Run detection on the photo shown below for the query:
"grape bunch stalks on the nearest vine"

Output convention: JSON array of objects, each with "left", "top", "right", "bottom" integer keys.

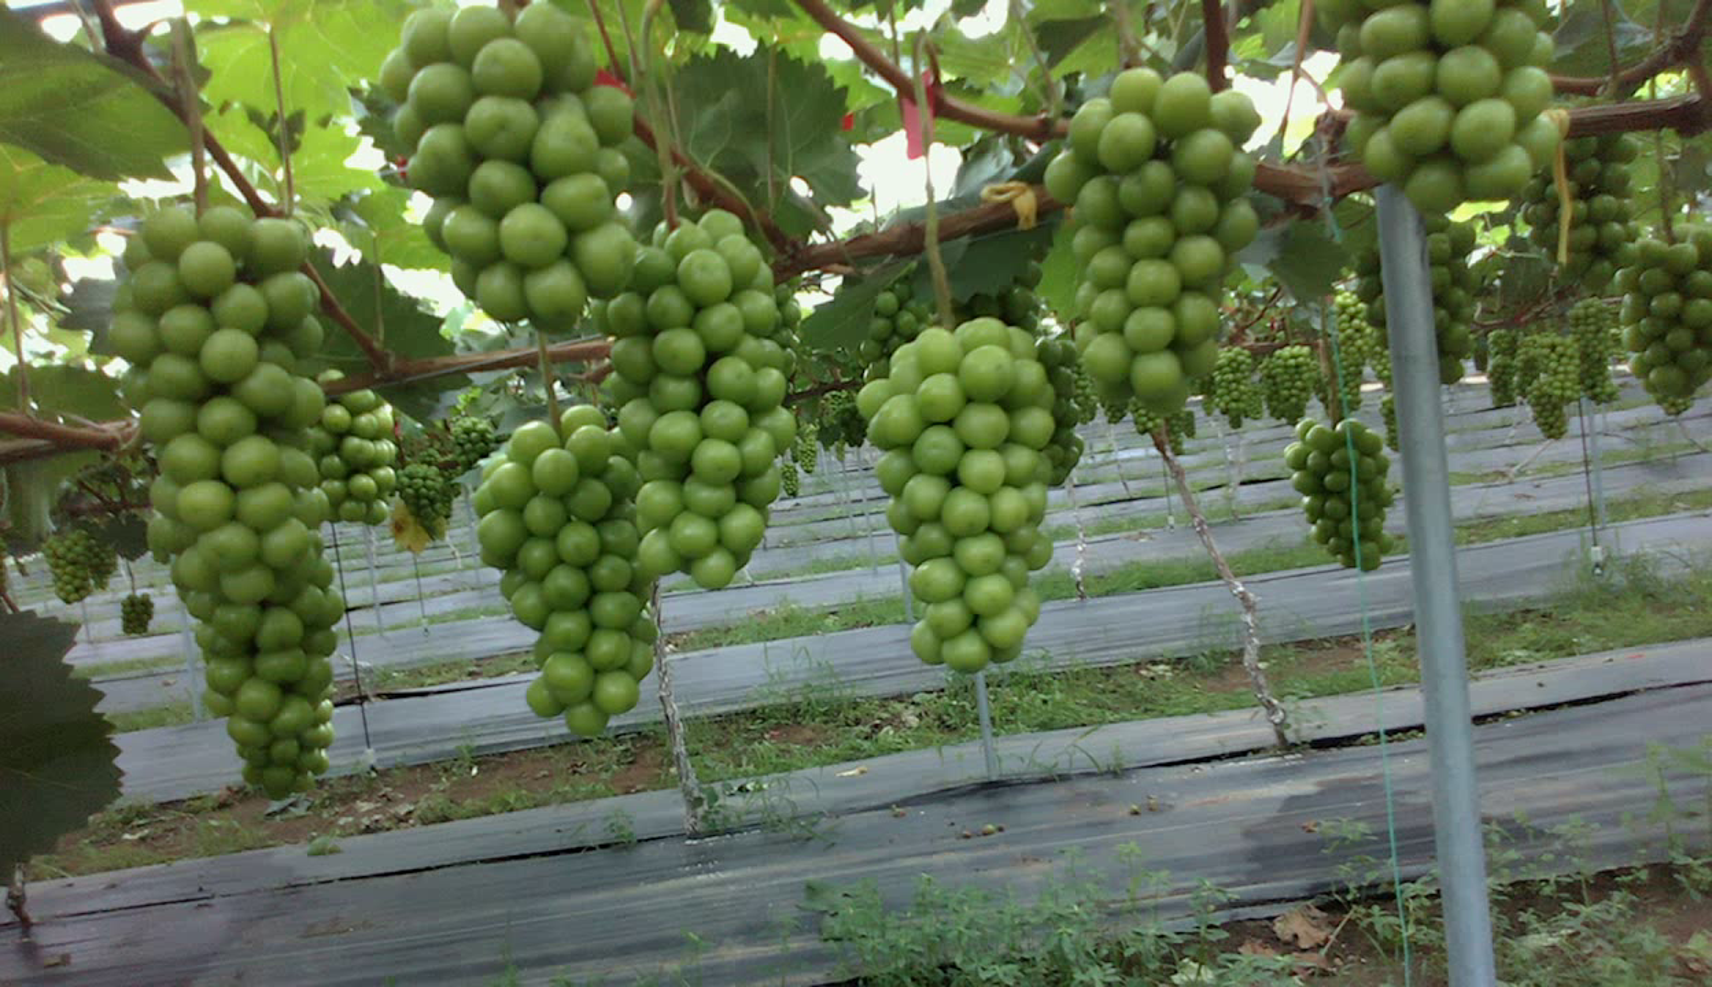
[
  {"left": 641, "top": 0, "right": 678, "bottom": 230},
  {"left": 911, "top": 29, "right": 952, "bottom": 326},
  {"left": 169, "top": 14, "right": 206, "bottom": 212}
]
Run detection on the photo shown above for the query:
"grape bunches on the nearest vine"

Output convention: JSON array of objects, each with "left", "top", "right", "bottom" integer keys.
[
  {"left": 1041, "top": 66, "right": 1262, "bottom": 411},
  {"left": 857, "top": 315, "right": 1055, "bottom": 674},
  {"left": 1316, "top": 1, "right": 1561, "bottom": 214},
  {"left": 170, "top": 529, "right": 346, "bottom": 802},
  {"left": 594, "top": 208, "right": 794, "bottom": 588},
  {"left": 108, "top": 206, "right": 325, "bottom": 605},
  {"left": 472, "top": 406, "right": 658, "bottom": 739},
  {"left": 379, "top": 1, "right": 637, "bottom": 332}
]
